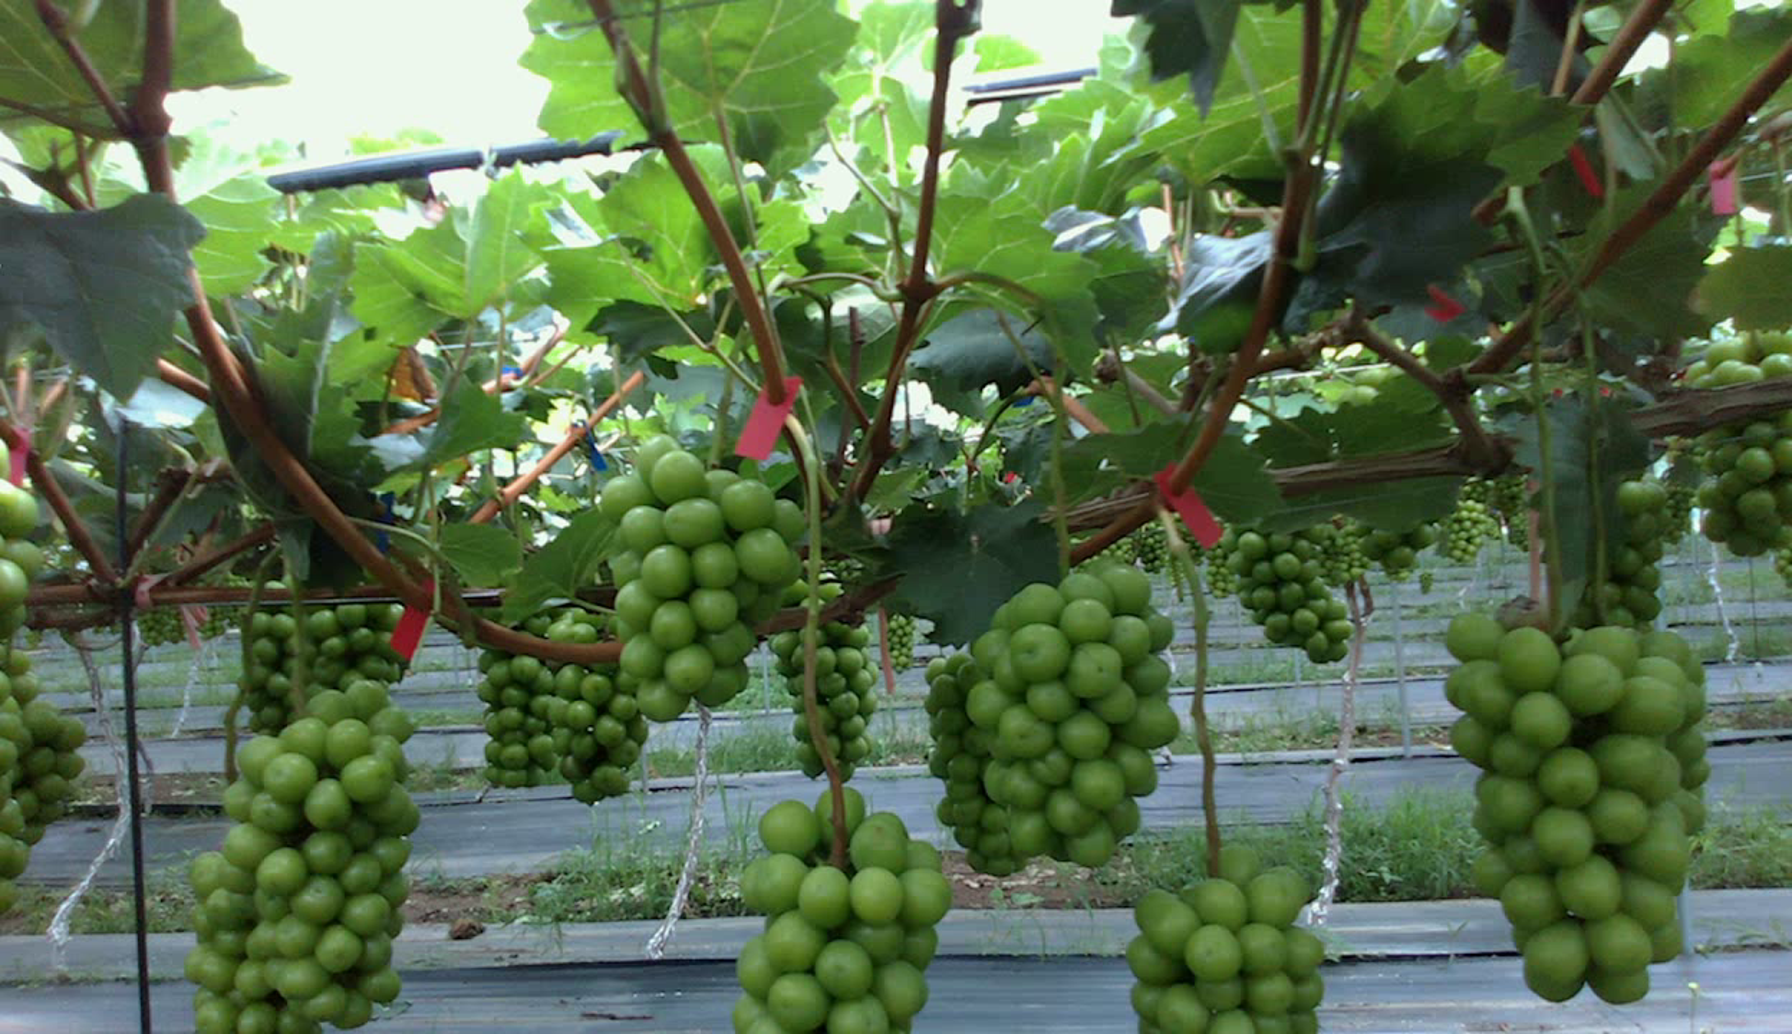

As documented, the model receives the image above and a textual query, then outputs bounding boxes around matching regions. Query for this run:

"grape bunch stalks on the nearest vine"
[925,271,1070,580]
[787,414,846,869]
[284,553,306,718]
[223,544,283,788]
[1160,510,1219,879]
[1496,187,1562,646]
[706,320,750,471]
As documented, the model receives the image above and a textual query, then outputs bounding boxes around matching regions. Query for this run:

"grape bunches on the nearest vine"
[221,681,421,1030]
[184,850,323,1033]
[1124,842,1325,1033]
[965,557,1179,869]
[600,432,807,721]
[1442,593,1710,1005]
[731,787,952,1033]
